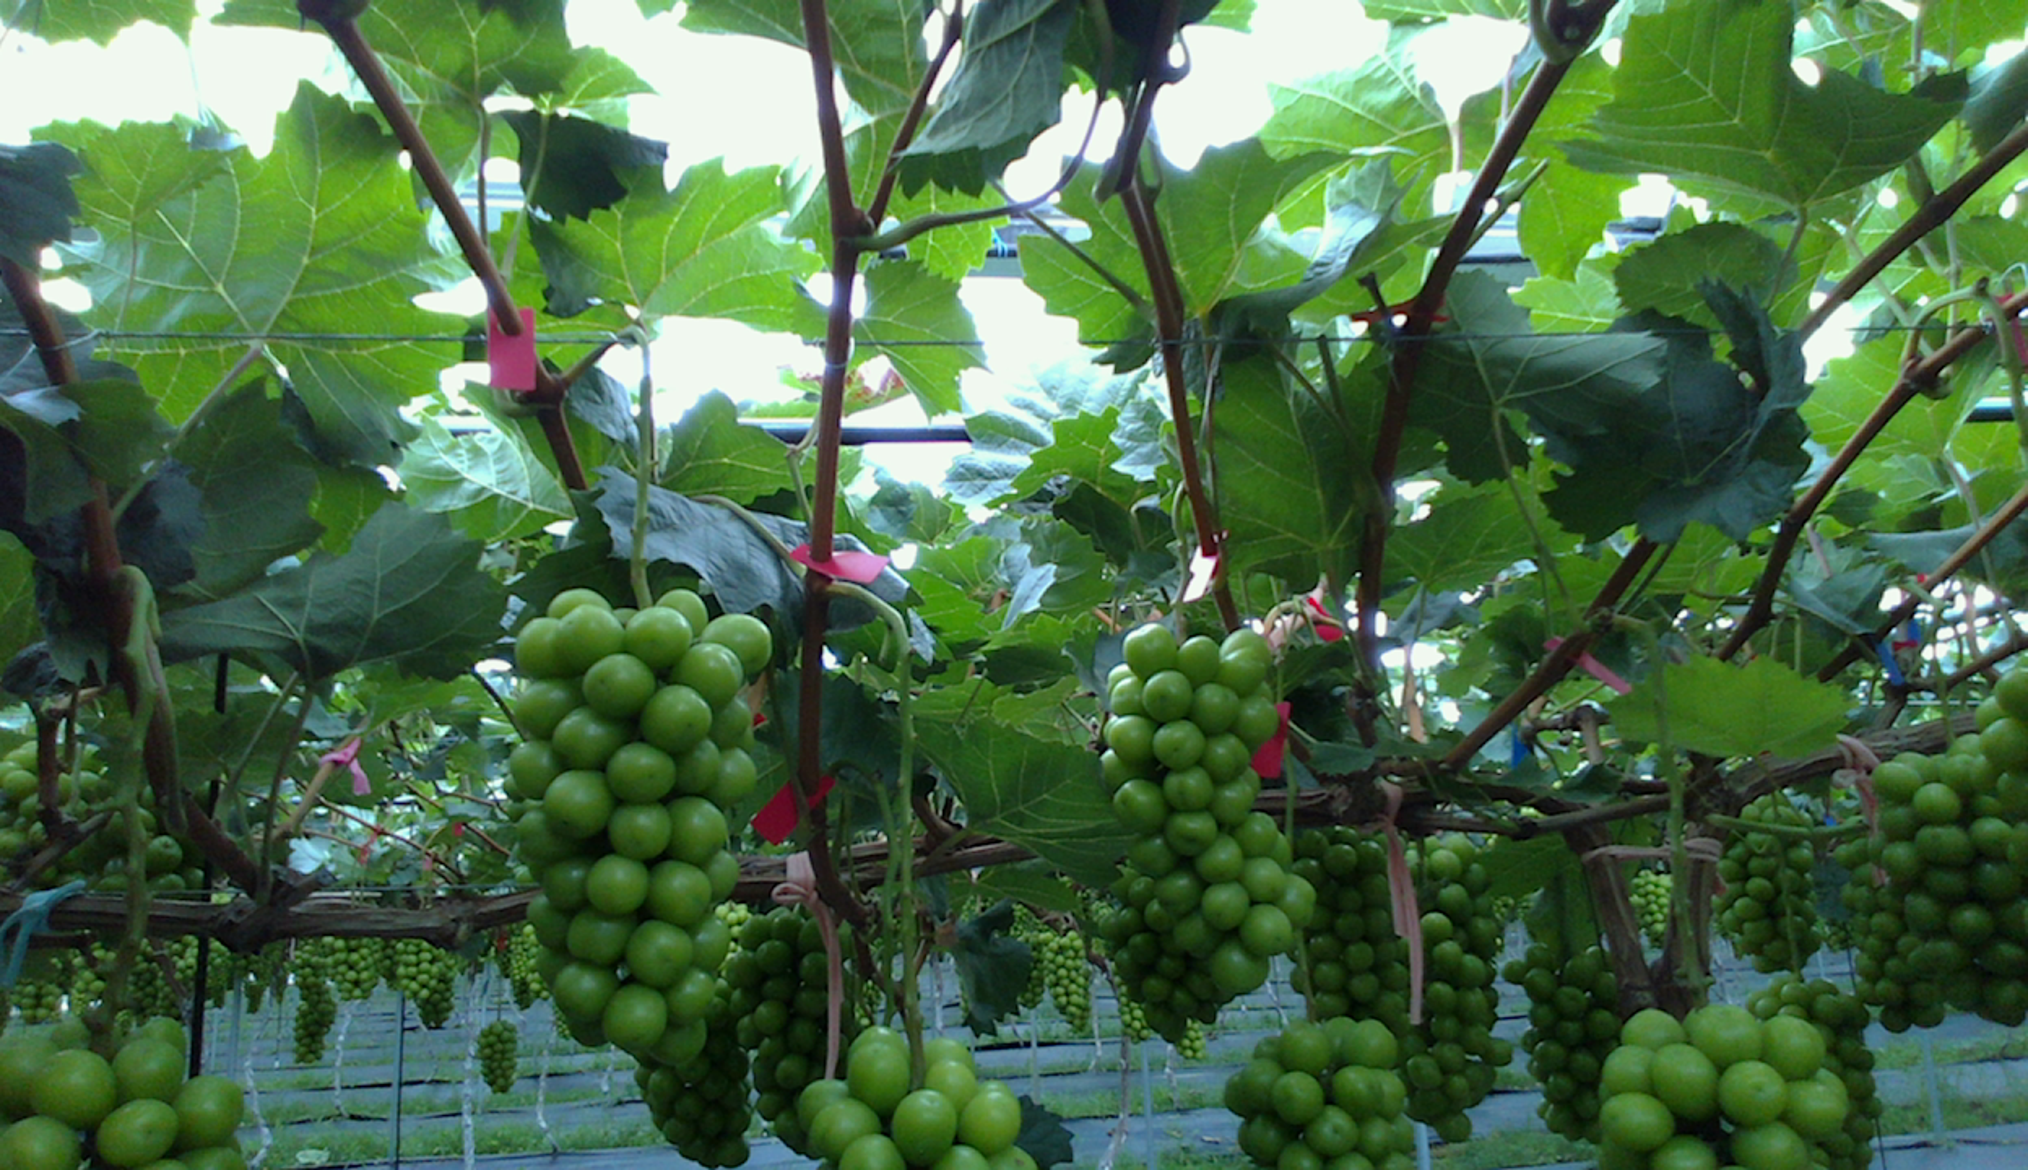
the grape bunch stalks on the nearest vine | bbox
[80,565,159,1061]
[1295,931,1316,1024]
[561,327,653,609]
[1900,577,1956,749]
[1605,614,1716,1012]
[1170,479,1193,647]
[832,580,926,1092]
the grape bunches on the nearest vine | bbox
[1222,1019,1414,1168]
[509,587,772,1064]
[1594,1003,1849,1168]
[1869,733,2026,1030]
[796,1027,1035,1168]
[2,1017,250,1168]
[1094,622,1318,994]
